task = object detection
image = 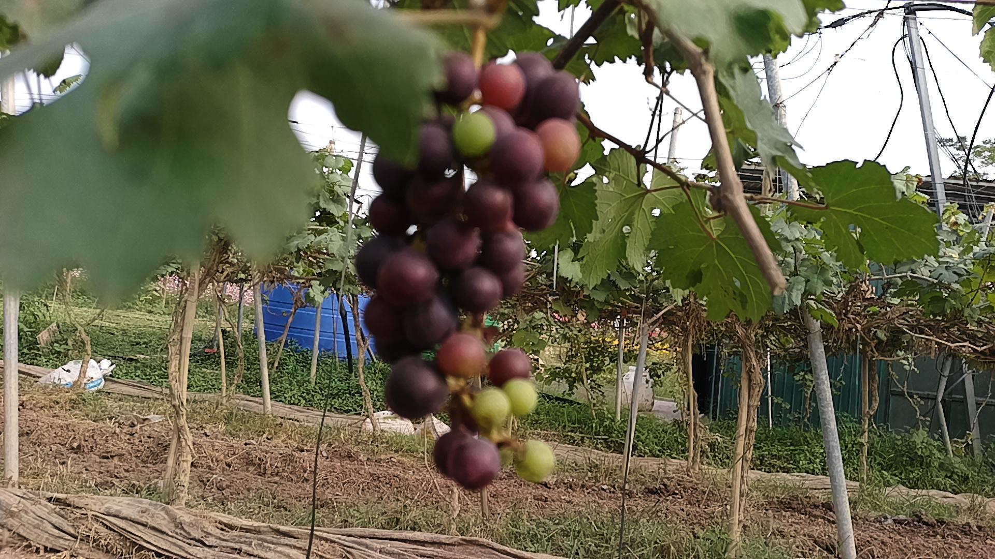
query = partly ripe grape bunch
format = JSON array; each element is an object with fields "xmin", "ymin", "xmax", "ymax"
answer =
[{"xmin": 355, "ymin": 52, "xmax": 580, "ymax": 489}]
